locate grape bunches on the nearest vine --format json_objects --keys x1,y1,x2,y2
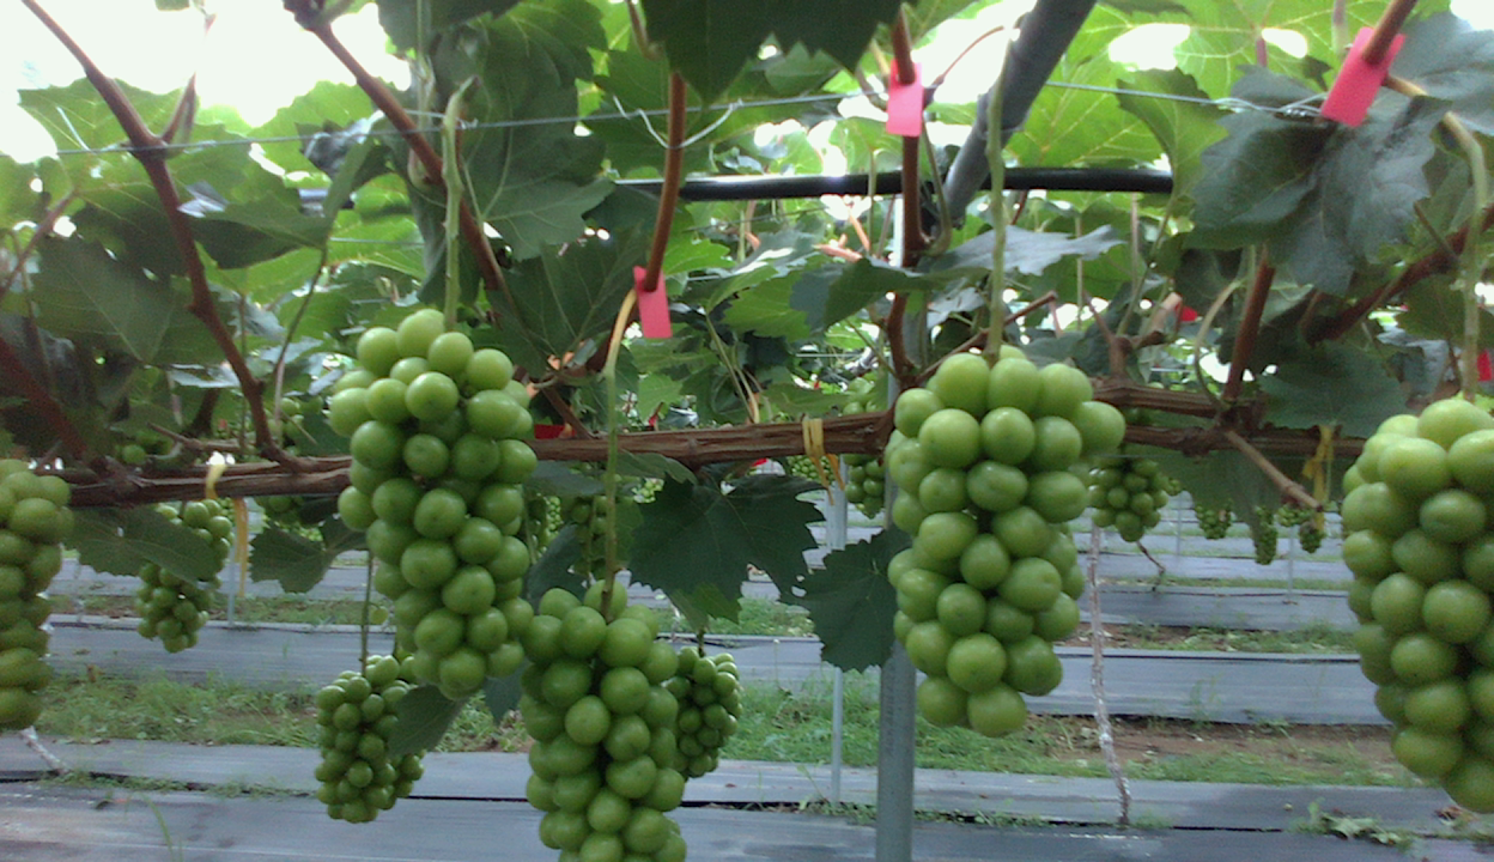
[
  {"x1": 1, "y1": 460, "x2": 74, "y2": 734},
  {"x1": 1340, "y1": 396, "x2": 1492, "y2": 812},
  {"x1": 886, "y1": 345, "x2": 1125, "y2": 736},
  {"x1": 324, "y1": 308, "x2": 540, "y2": 700},
  {"x1": 520, "y1": 581, "x2": 685, "y2": 861}
]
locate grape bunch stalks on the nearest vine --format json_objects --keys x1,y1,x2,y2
[
  {"x1": 1446, "y1": 116, "x2": 1489, "y2": 400},
  {"x1": 597, "y1": 291, "x2": 636, "y2": 619},
  {"x1": 442, "y1": 78, "x2": 479, "y2": 330},
  {"x1": 986, "y1": 78, "x2": 1008, "y2": 362}
]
